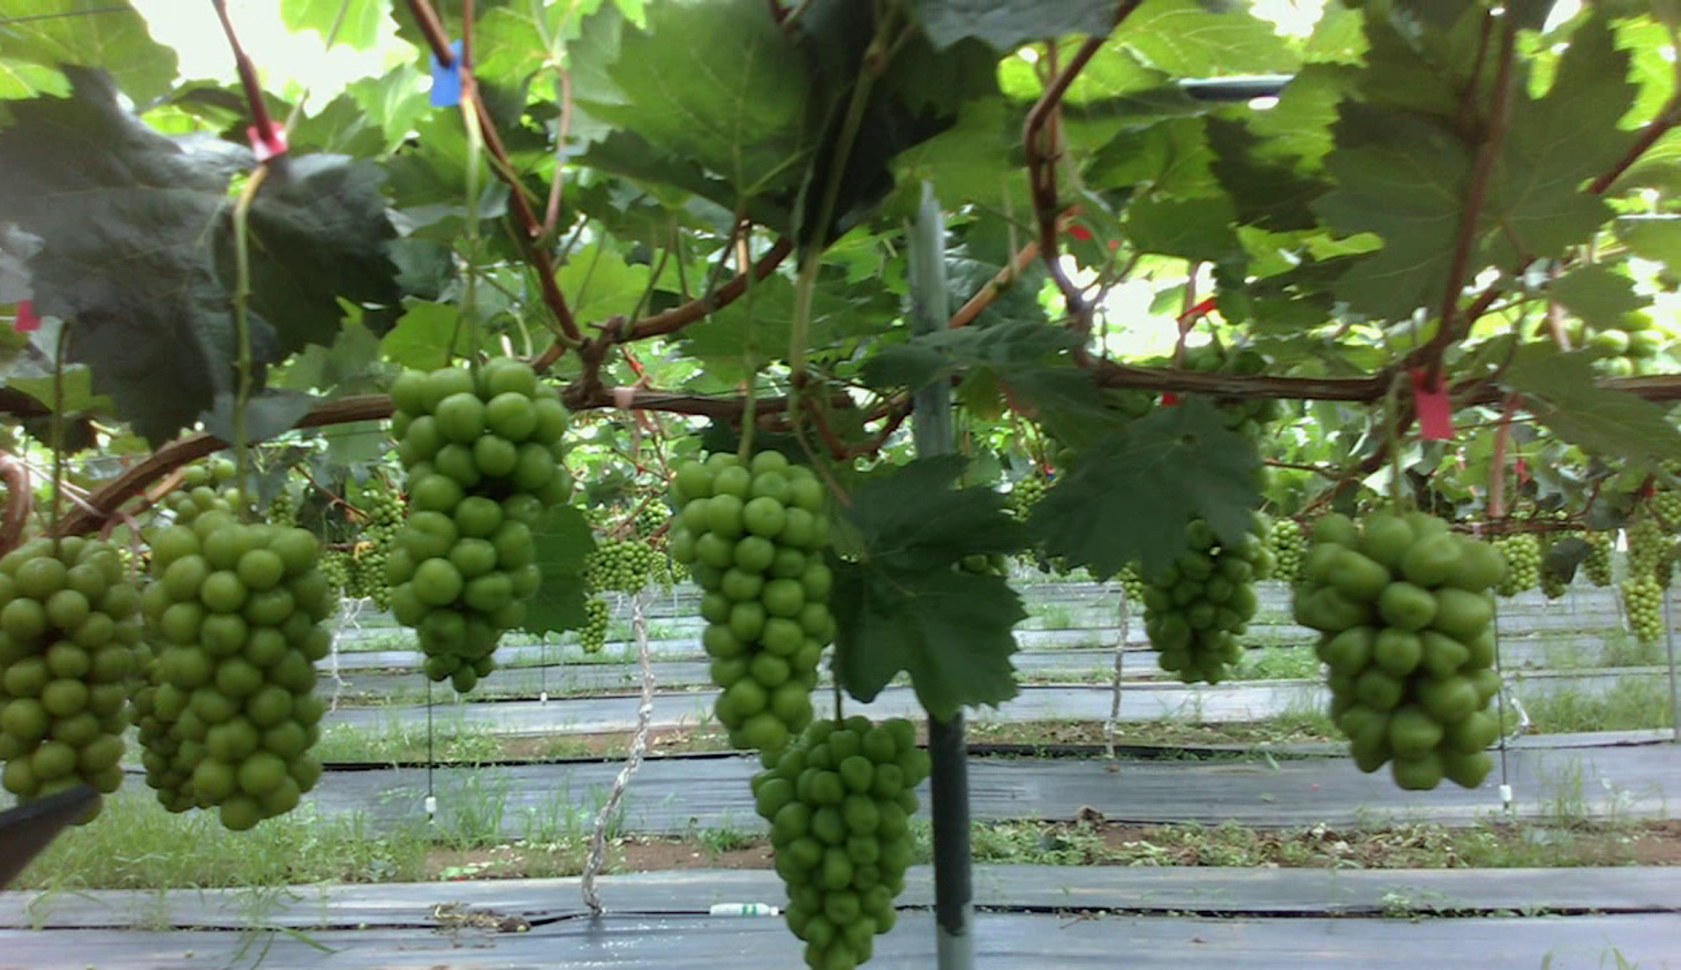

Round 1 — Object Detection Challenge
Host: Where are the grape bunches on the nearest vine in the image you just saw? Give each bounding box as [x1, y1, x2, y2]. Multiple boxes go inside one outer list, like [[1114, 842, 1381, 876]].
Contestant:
[[667, 450, 838, 750], [384, 357, 574, 694], [1292, 507, 1509, 791], [0, 536, 152, 804], [749, 715, 932, 969], [144, 508, 334, 831]]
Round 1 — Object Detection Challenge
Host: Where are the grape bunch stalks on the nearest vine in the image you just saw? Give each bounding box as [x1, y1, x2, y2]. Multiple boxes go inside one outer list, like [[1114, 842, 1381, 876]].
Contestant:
[[459, 100, 486, 400], [228, 163, 271, 524], [834, 678, 845, 729], [50, 323, 70, 559], [735, 228, 757, 466], [1385, 370, 1410, 516]]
